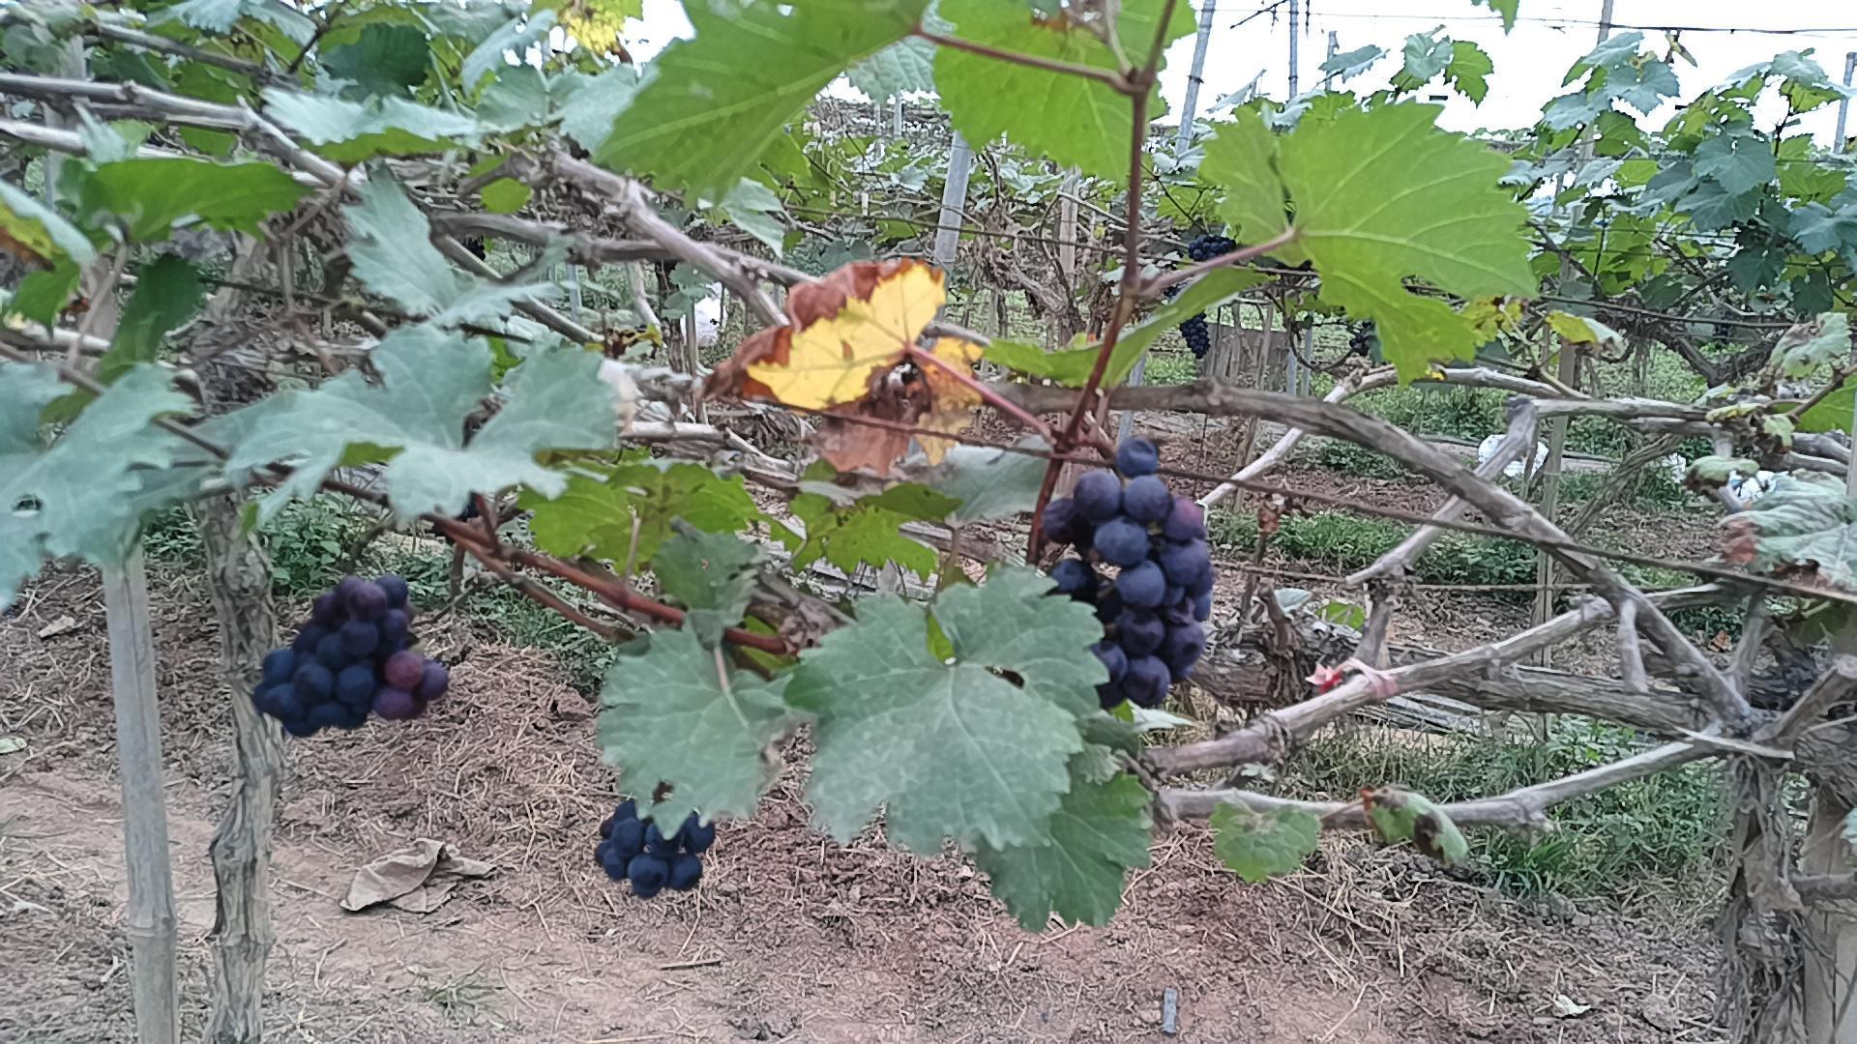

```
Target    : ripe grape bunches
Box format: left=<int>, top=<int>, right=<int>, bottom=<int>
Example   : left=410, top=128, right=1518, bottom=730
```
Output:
left=1185, top=233, right=1236, bottom=261
left=1044, top=437, right=1214, bottom=707
left=1164, top=286, right=1179, bottom=299
left=595, top=799, right=715, bottom=897
left=253, top=574, right=448, bottom=736
left=1178, top=313, right=1212, bottom=359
